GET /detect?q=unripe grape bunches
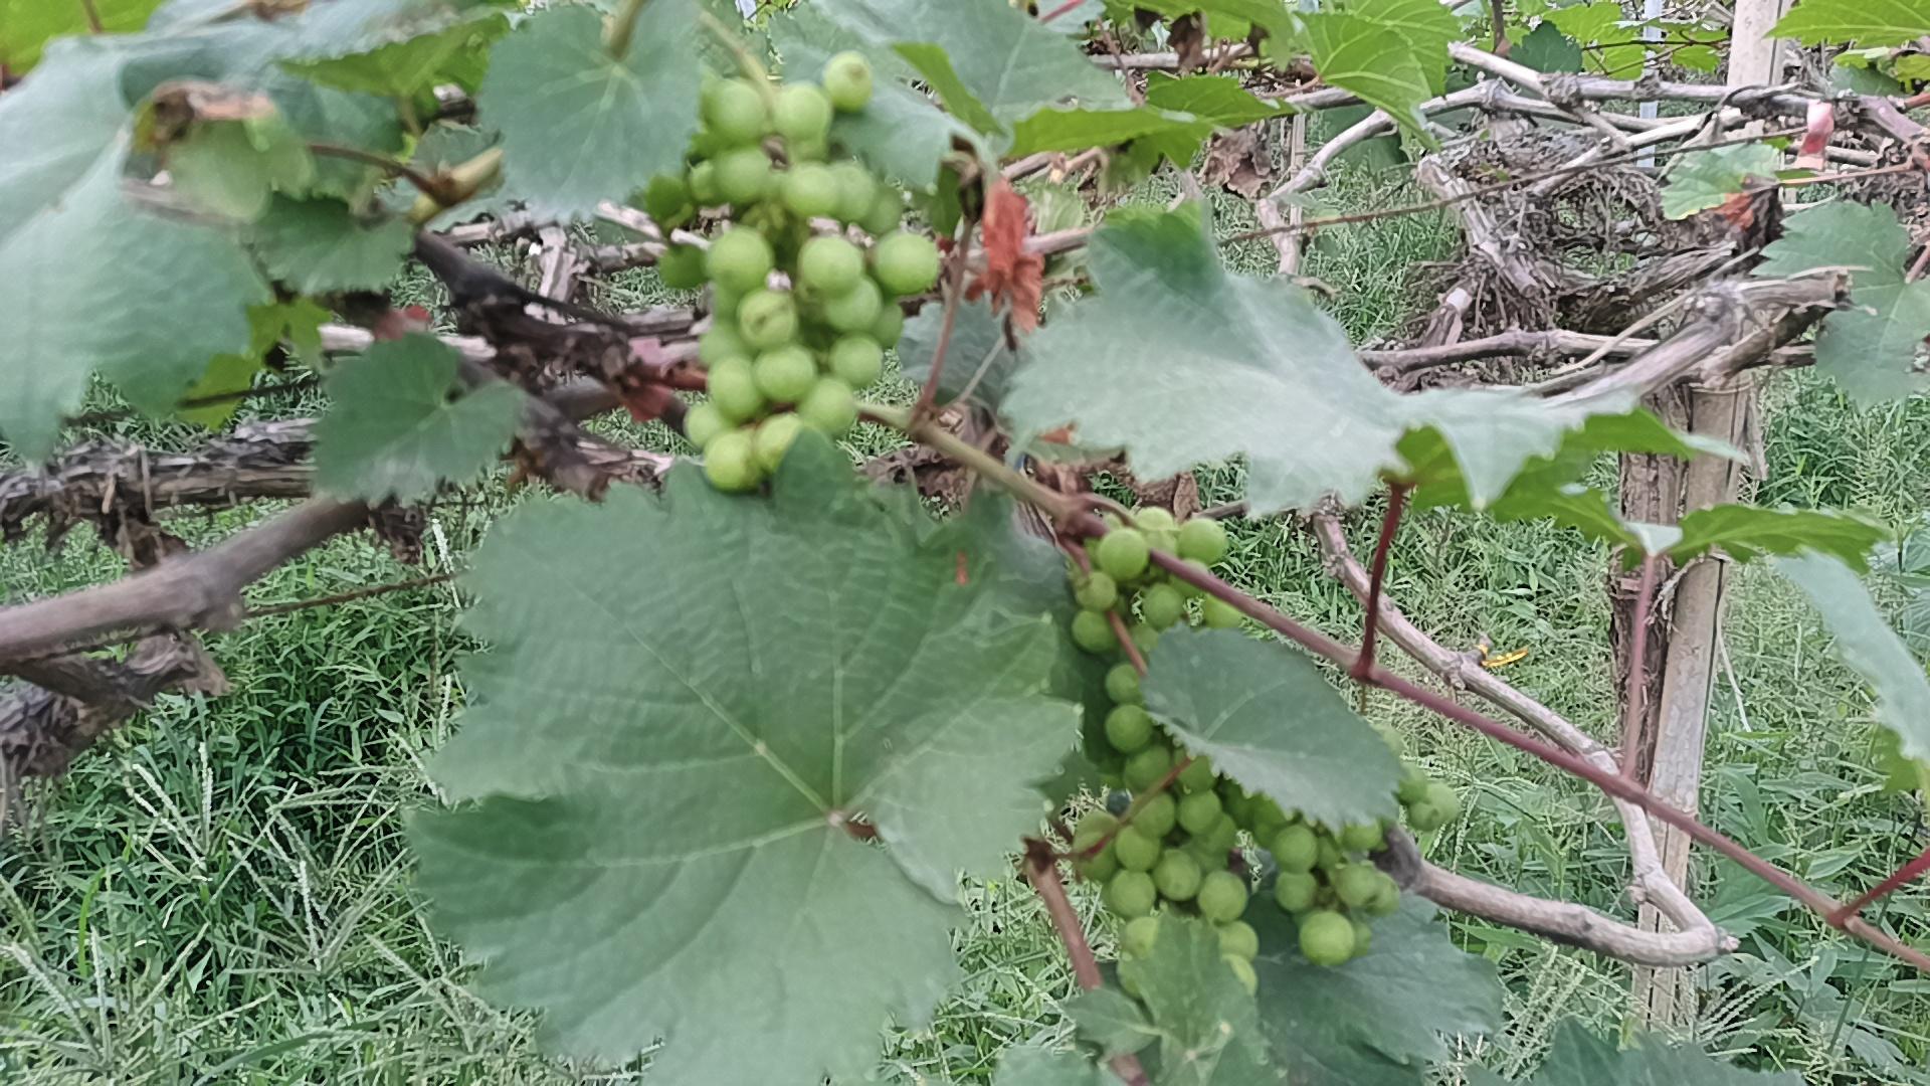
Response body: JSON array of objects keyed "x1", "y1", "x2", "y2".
[
  {"x1": 646, "y1": 53, "x2": 939, "y2": 491},
  {"x1": 1070, "y1": 509, "x2": 1450, "y2": 965}
]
